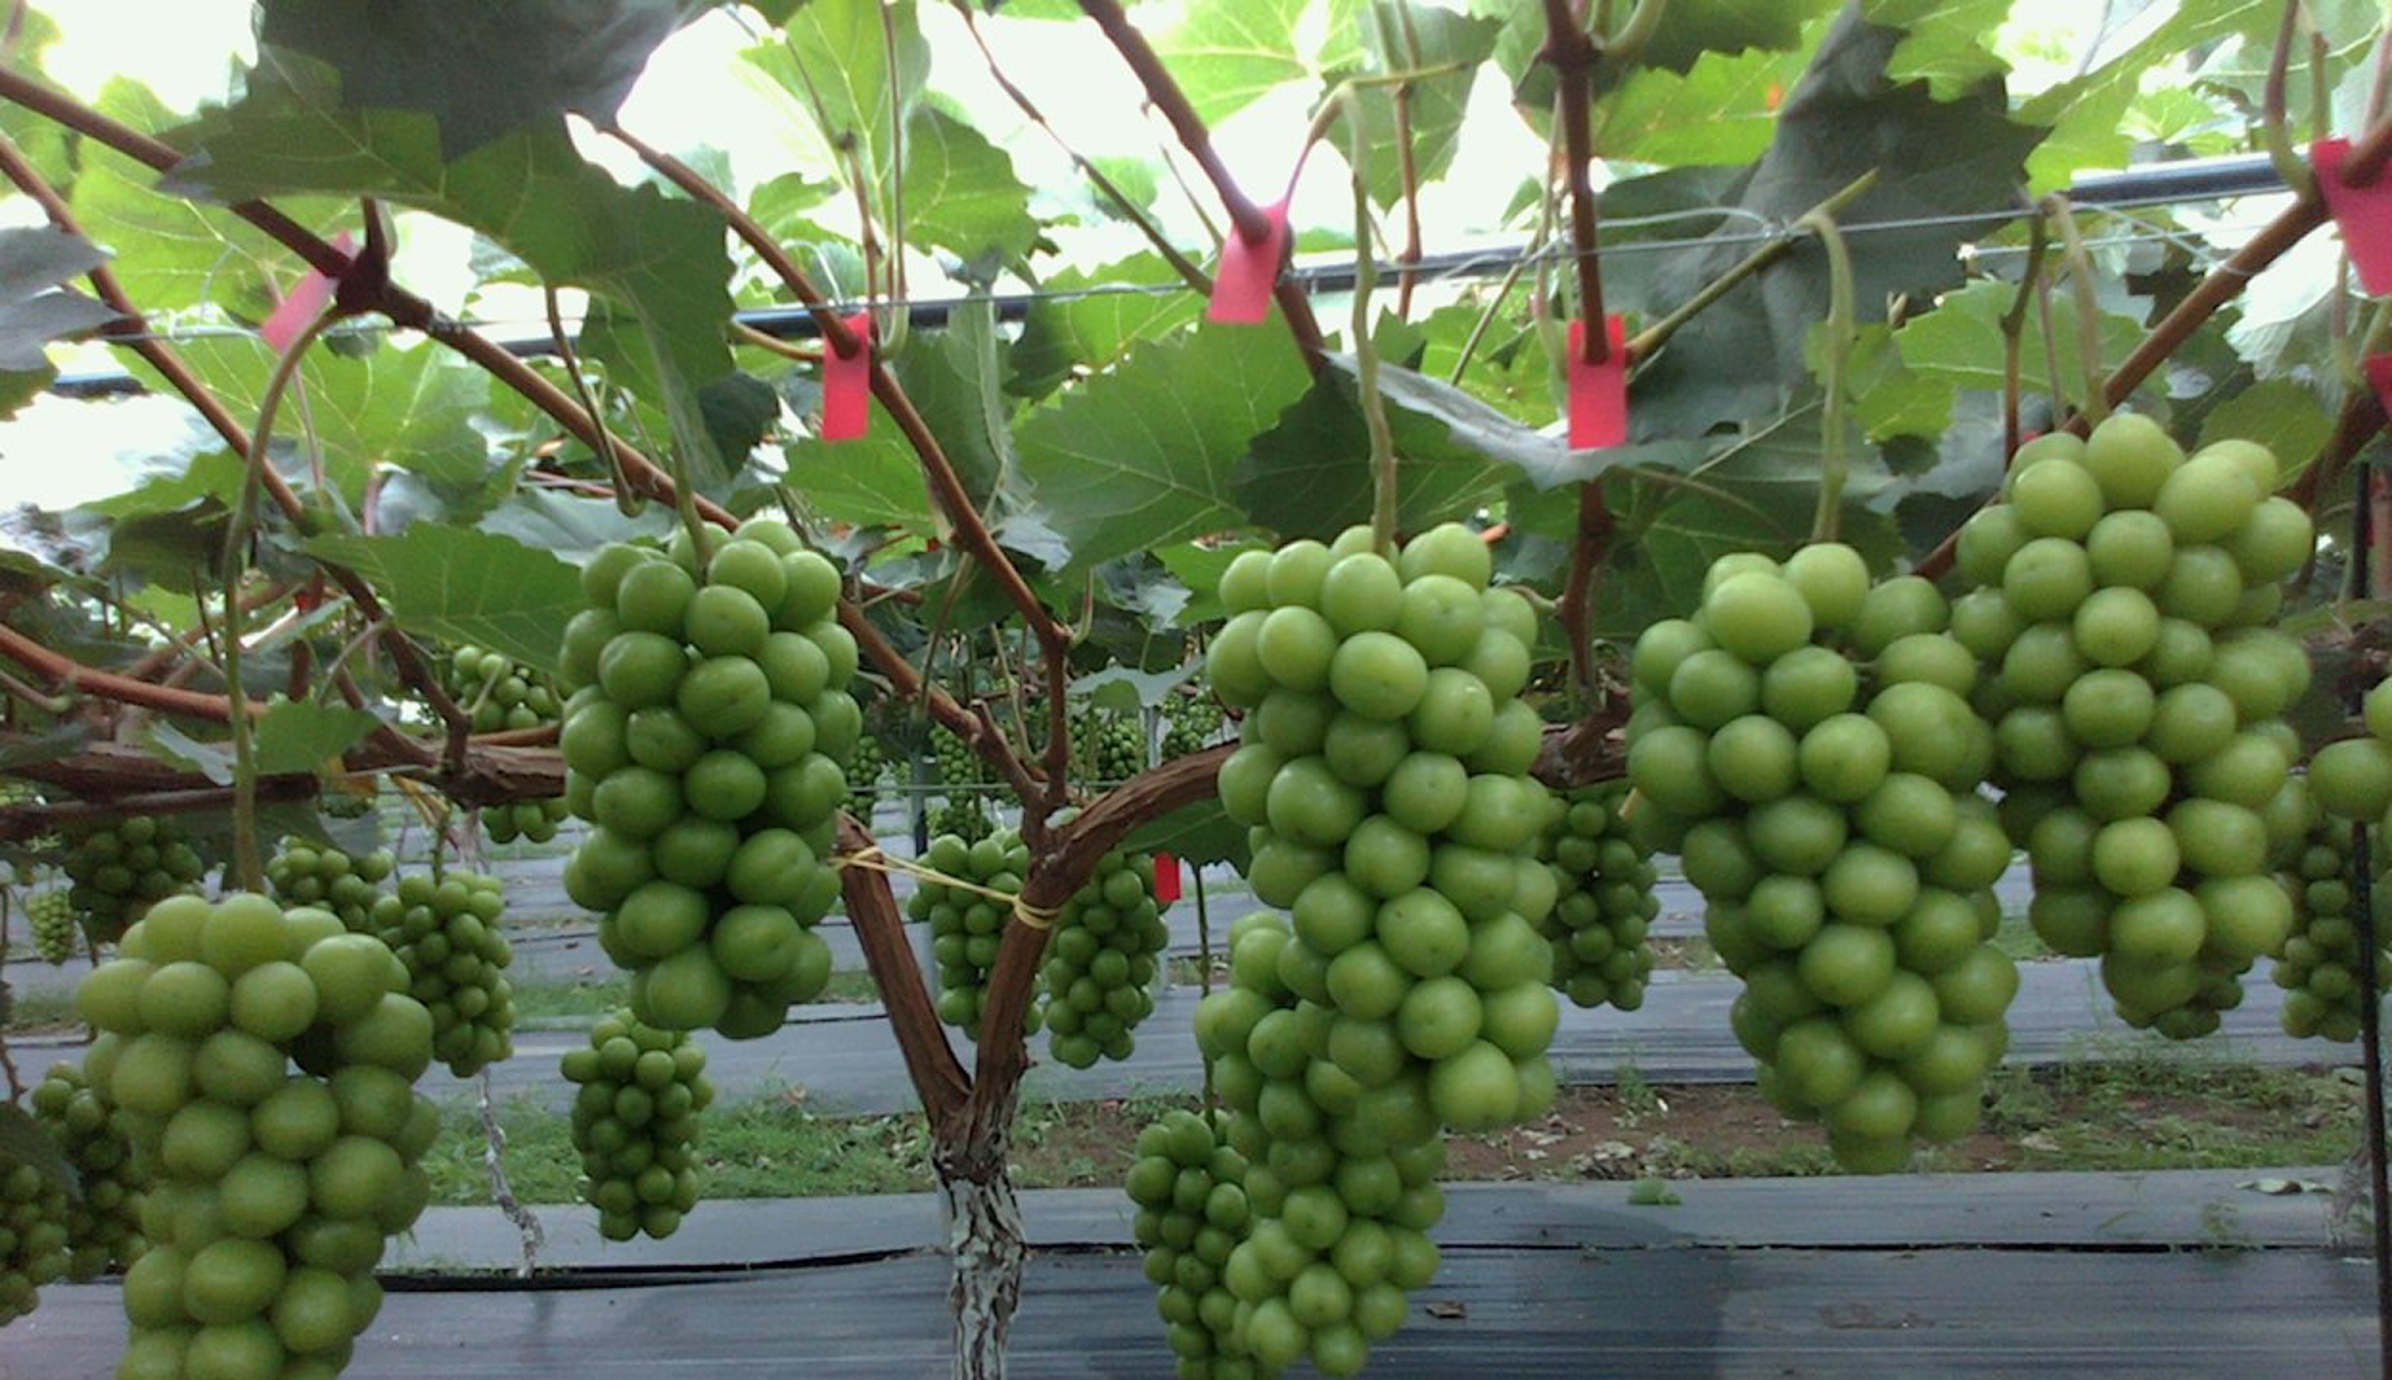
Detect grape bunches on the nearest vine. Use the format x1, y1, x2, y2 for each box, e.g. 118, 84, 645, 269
77, 893, 439, 1378
1186, 910, 1449, 1376
560, 517, 862, 1043
1947, 412, 2317, 1012
1204, 523, 1564, 1156
1625, 546, 2020, 1163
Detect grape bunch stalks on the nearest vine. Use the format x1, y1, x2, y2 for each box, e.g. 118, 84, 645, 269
1804, 217, 1859, 544
2043, 194, 2110, 422
222, 314, 330, 893
1340, 86, 1395, 565
675, 447, 713, 579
